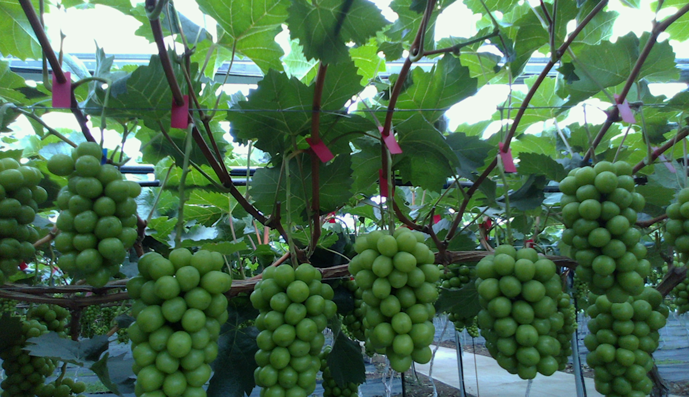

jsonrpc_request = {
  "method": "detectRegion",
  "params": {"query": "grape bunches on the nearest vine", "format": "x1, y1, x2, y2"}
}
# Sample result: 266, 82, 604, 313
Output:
584, 285, 670, 396
558, 161, 651, 303
126, 248, 230, 396
474, 246, 563, 380
251, 263, 337, 396
47, 142, 140, 287
0, 157, 47, 285
348, 227, 439, 373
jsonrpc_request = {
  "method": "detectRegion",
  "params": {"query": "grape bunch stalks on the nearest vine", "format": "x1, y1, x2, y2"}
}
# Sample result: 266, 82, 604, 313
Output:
285, 149, 304, 269
77, 77, 112, 148
385, 147, 395, 235
582, 104, 597, 165
497, 157, 512, 244
173, 125, 193, 248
